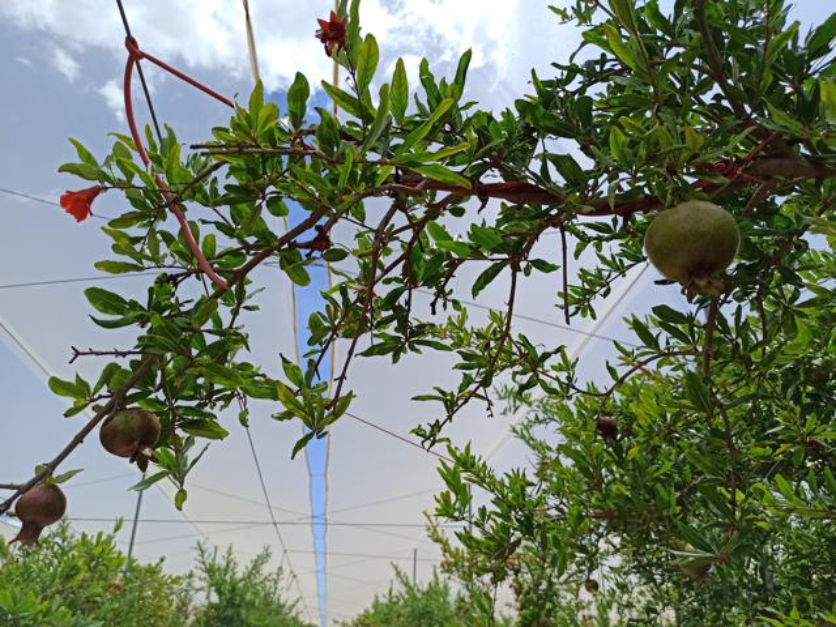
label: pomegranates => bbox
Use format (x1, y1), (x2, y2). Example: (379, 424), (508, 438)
(645, 199), (739, 304)
(7, 482), (67, 546)
(677, 542), (713, 587)
(99, 408), (161, 474)
(597, 418), (617, 443)
(585, 579), (598, 593)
